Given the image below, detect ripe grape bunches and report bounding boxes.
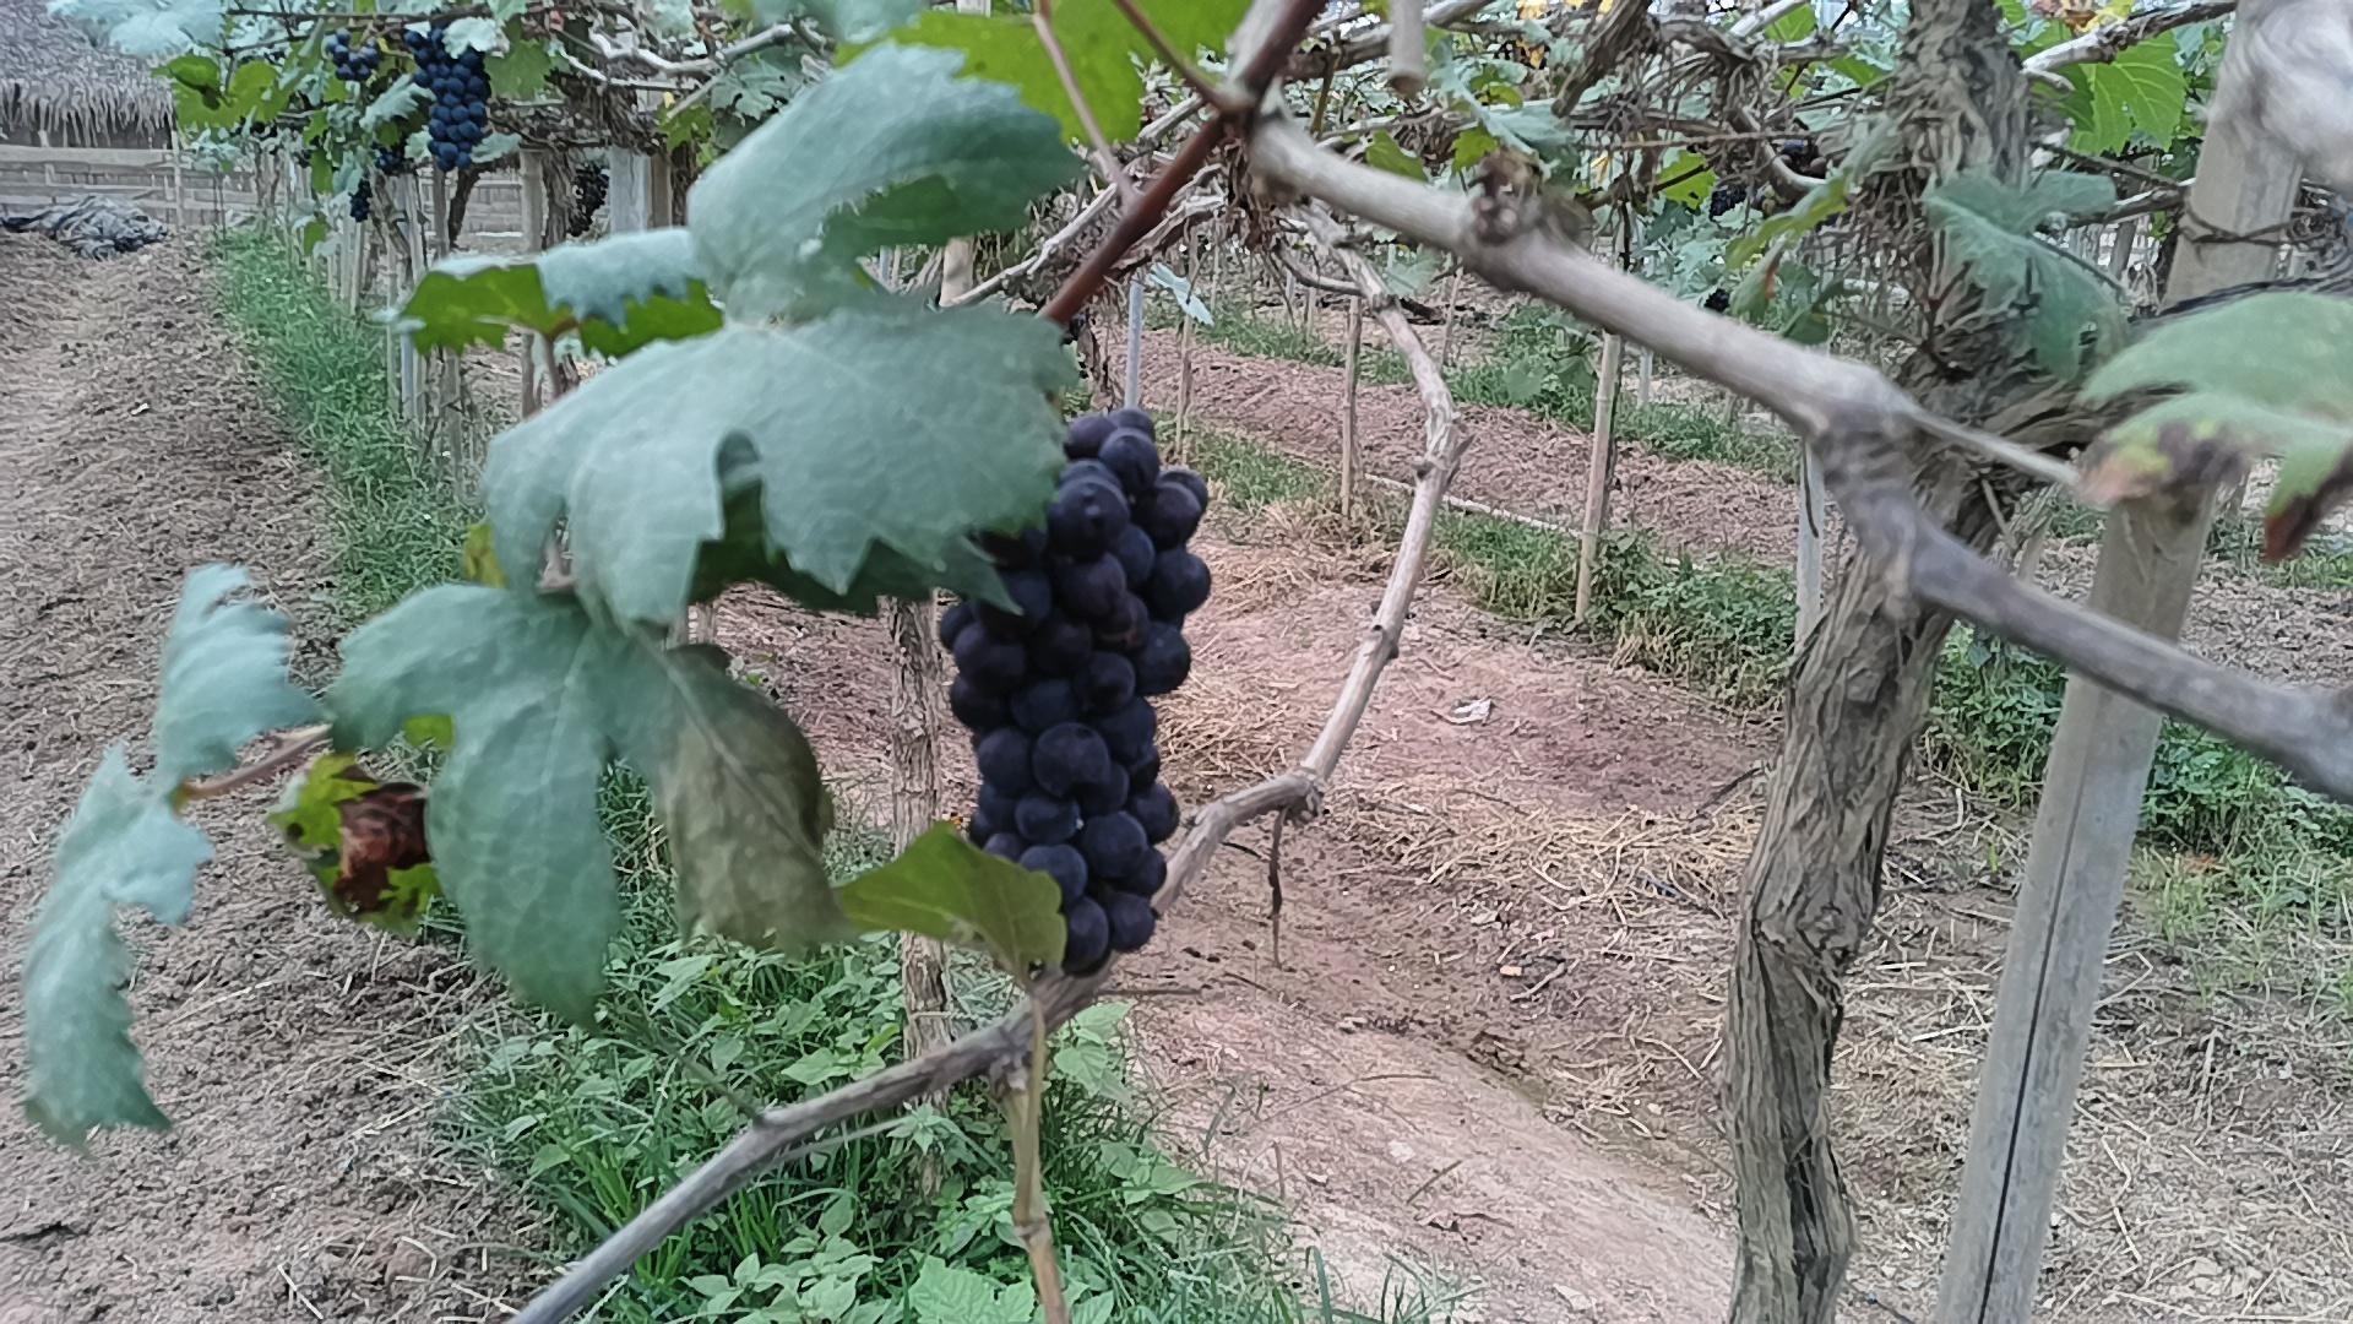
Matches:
[373,131,417,175]
[939,408,1208,970]
[327,31,384,82]
[403,22,489,175]
[349,179,373,222]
